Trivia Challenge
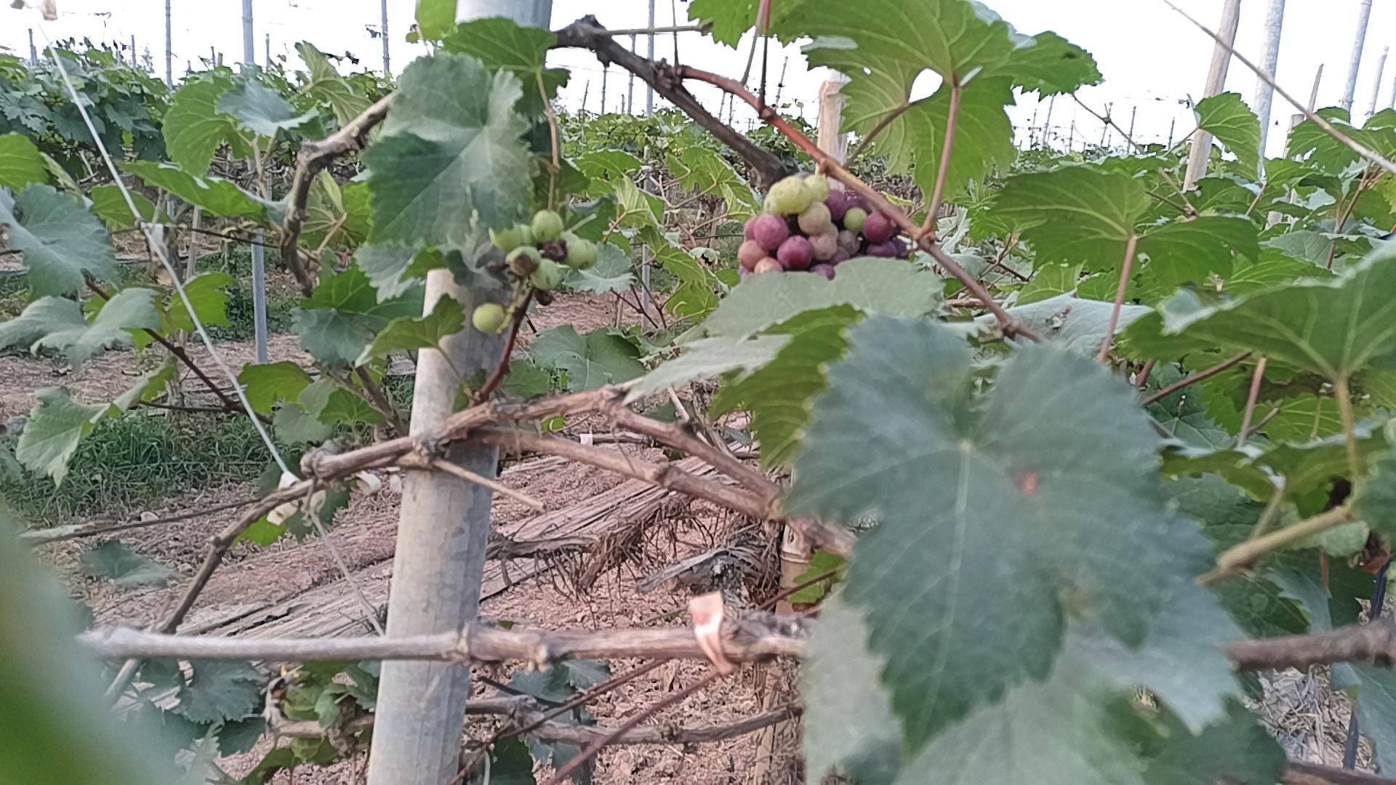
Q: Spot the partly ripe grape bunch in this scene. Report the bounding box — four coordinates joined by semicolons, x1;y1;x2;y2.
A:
739;173;907;275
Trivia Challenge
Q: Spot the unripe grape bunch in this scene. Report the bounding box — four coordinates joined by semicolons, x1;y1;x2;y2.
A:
471;210;598;333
